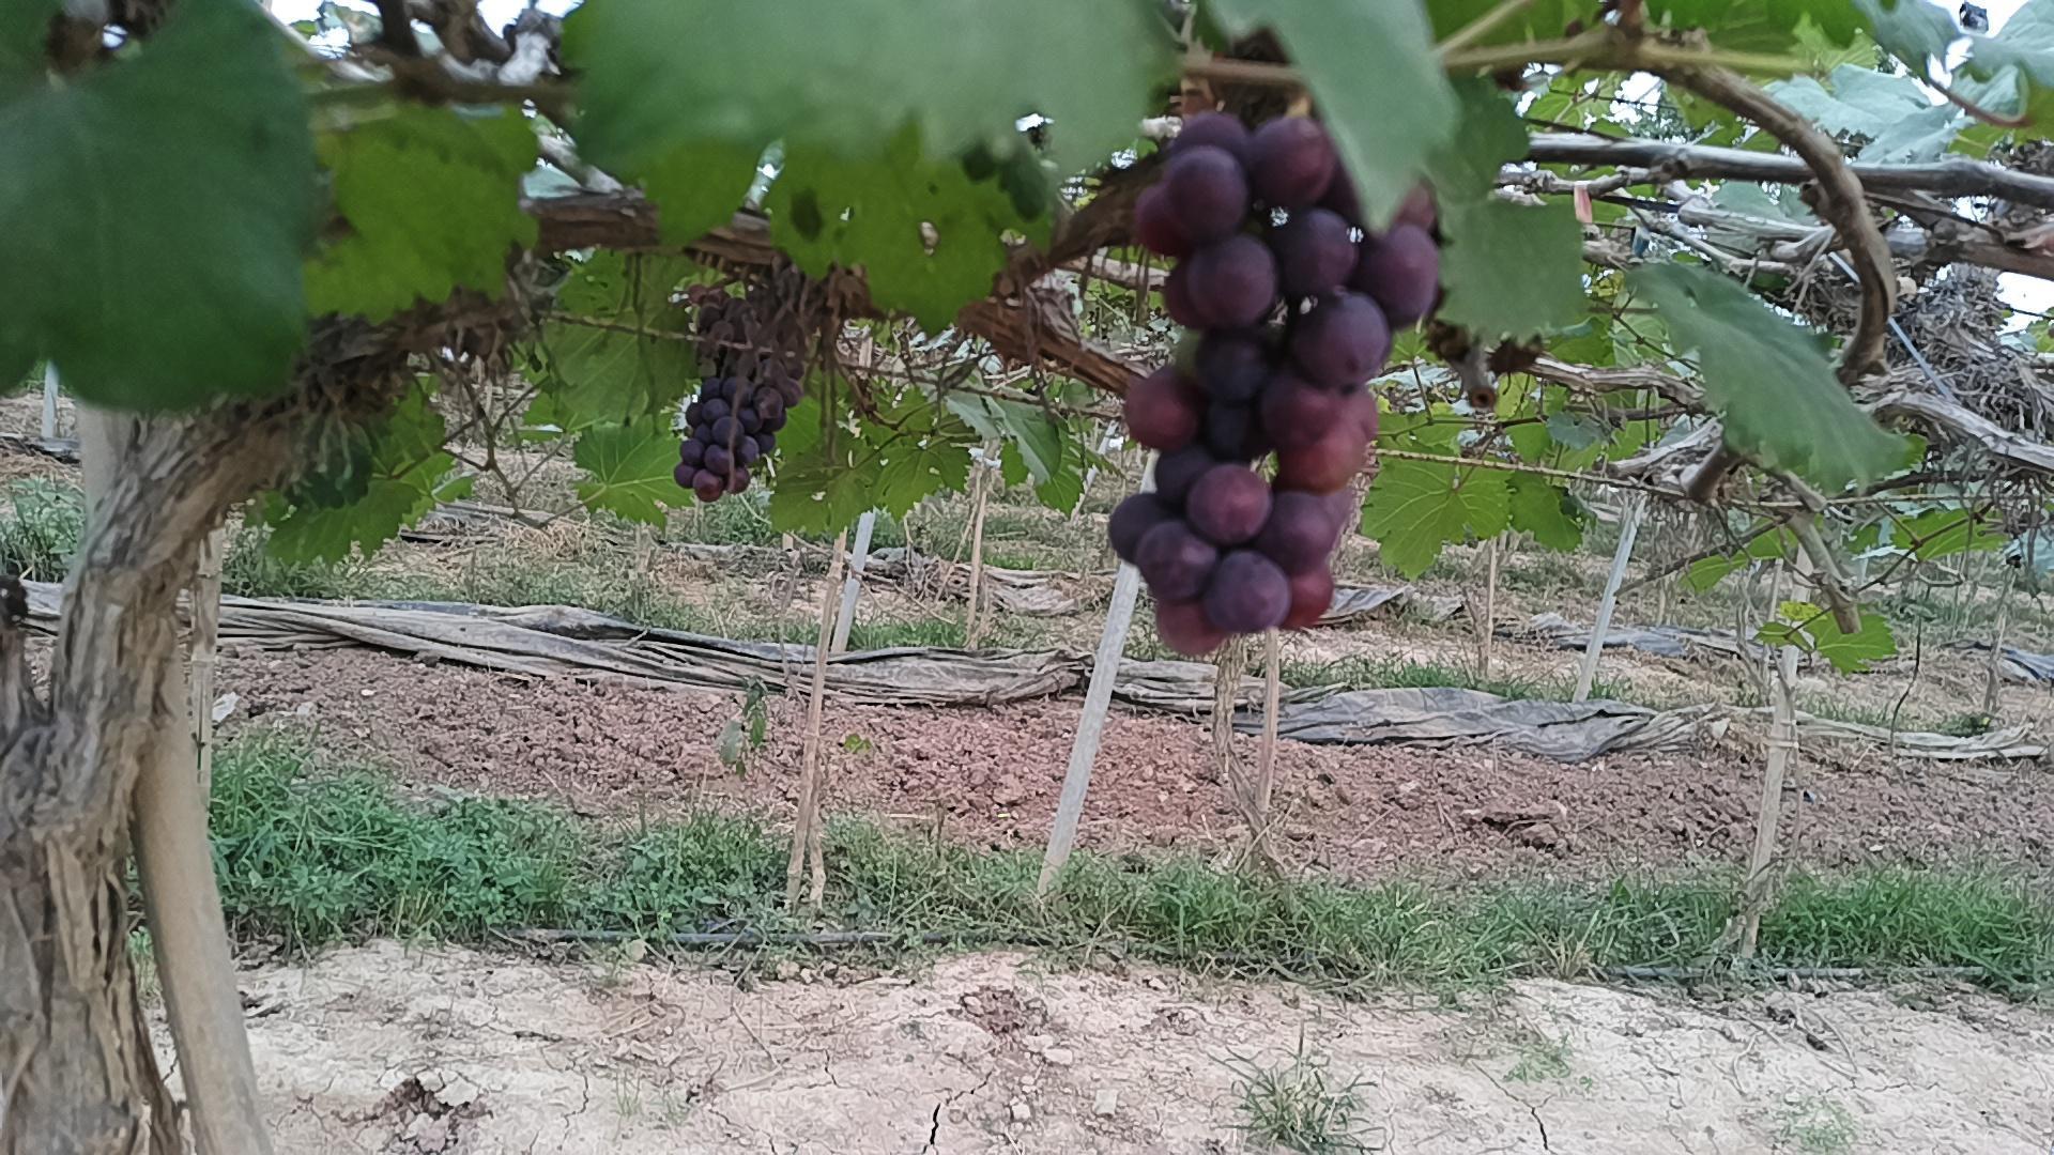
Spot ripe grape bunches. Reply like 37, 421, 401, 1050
674, 252, 811, 502
1108, 112, 1439, 653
